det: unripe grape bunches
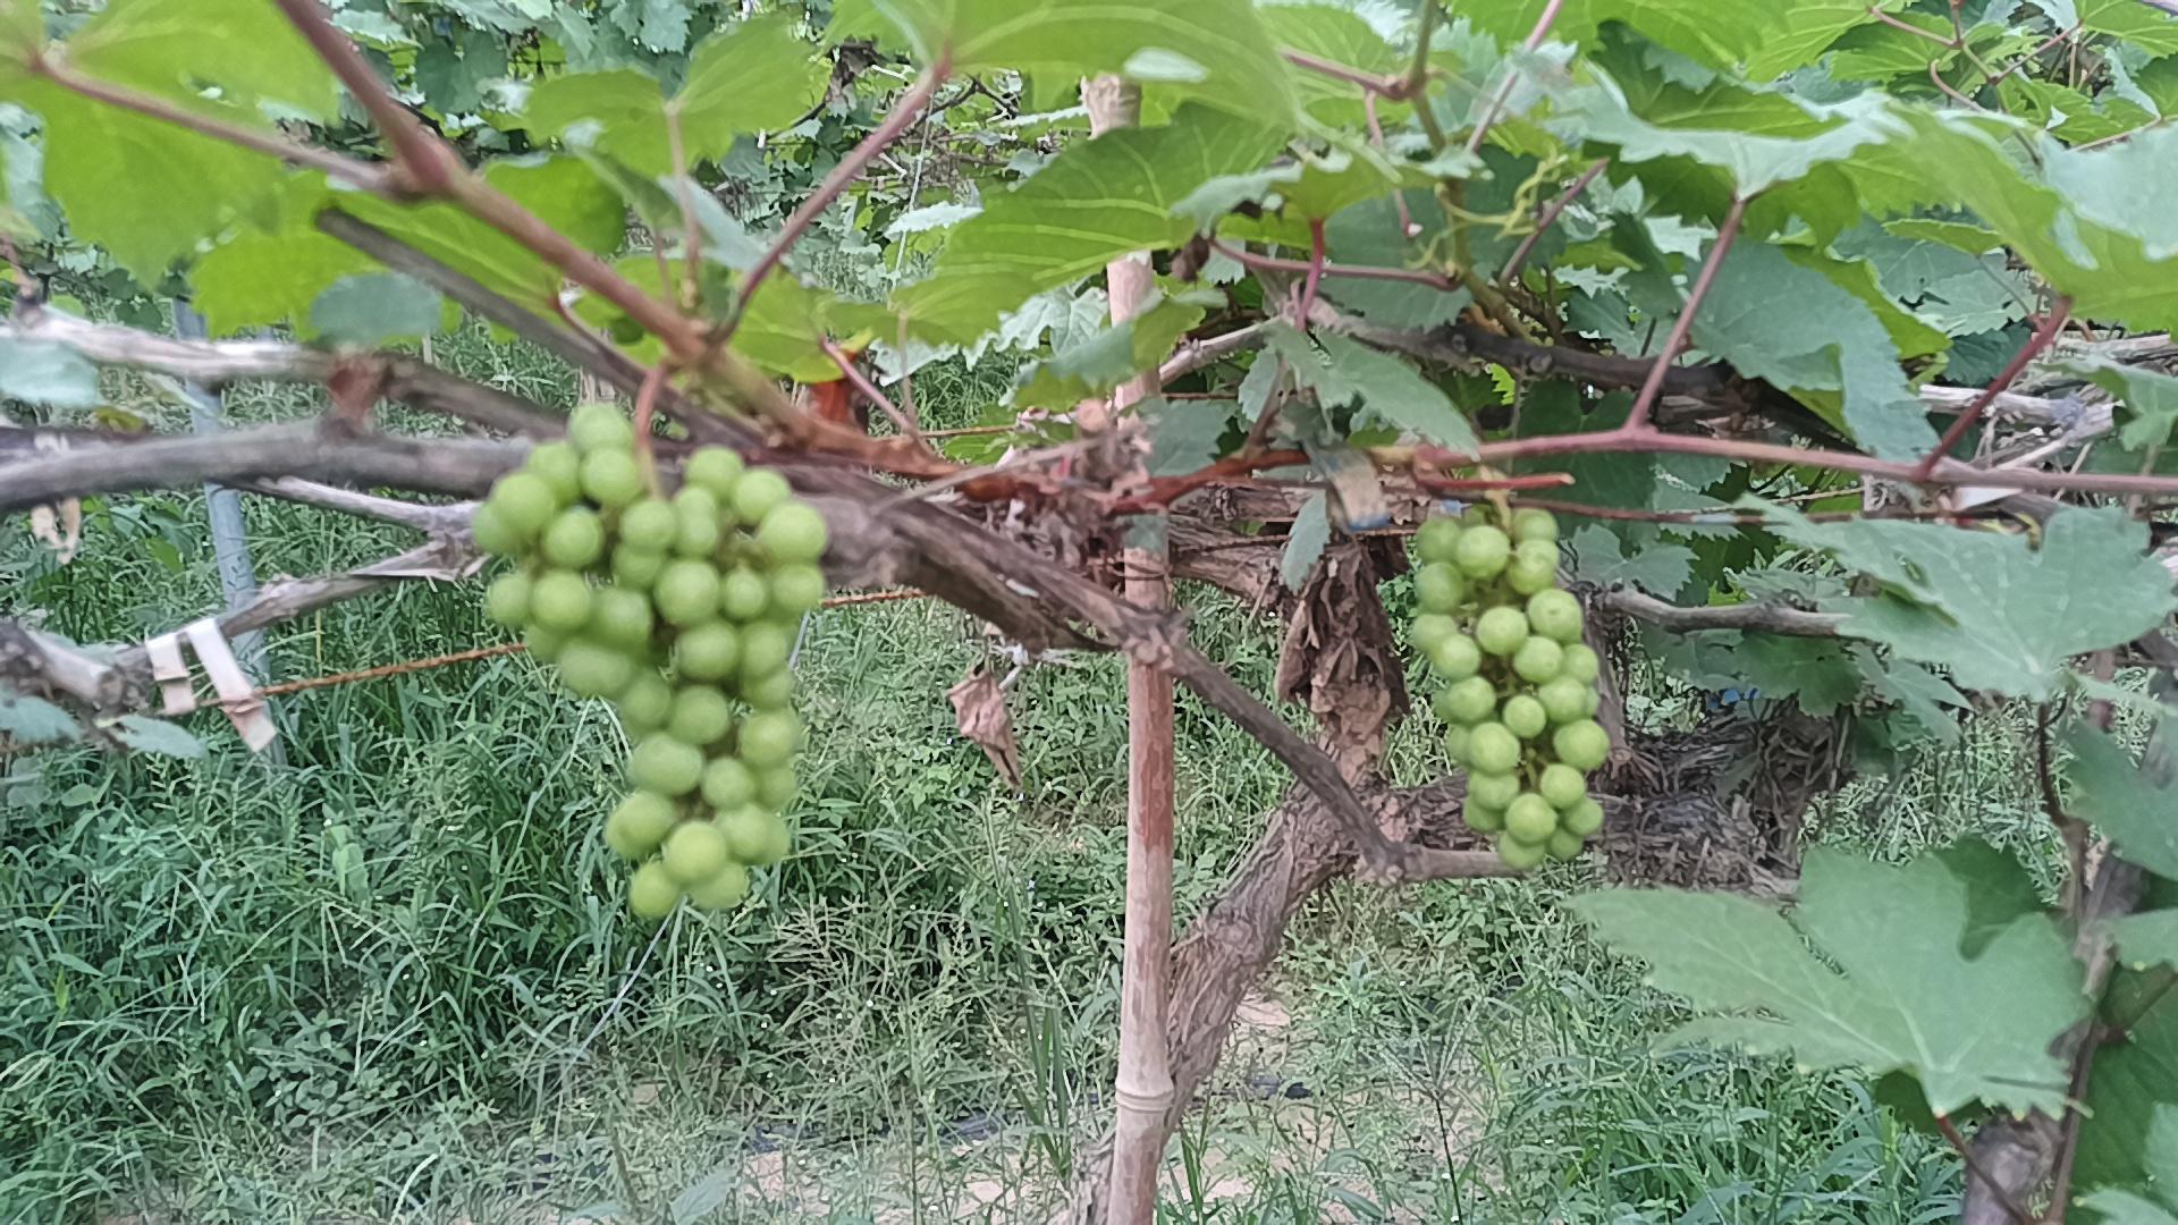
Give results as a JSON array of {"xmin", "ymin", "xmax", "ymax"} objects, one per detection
[
  {"xmin": 475, "ymin": 404, "xmax": 826, "ymax": 919},
  {"xmin": 1410, "ymin": 506, "xmax": 1610, "ymax": 869}
]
